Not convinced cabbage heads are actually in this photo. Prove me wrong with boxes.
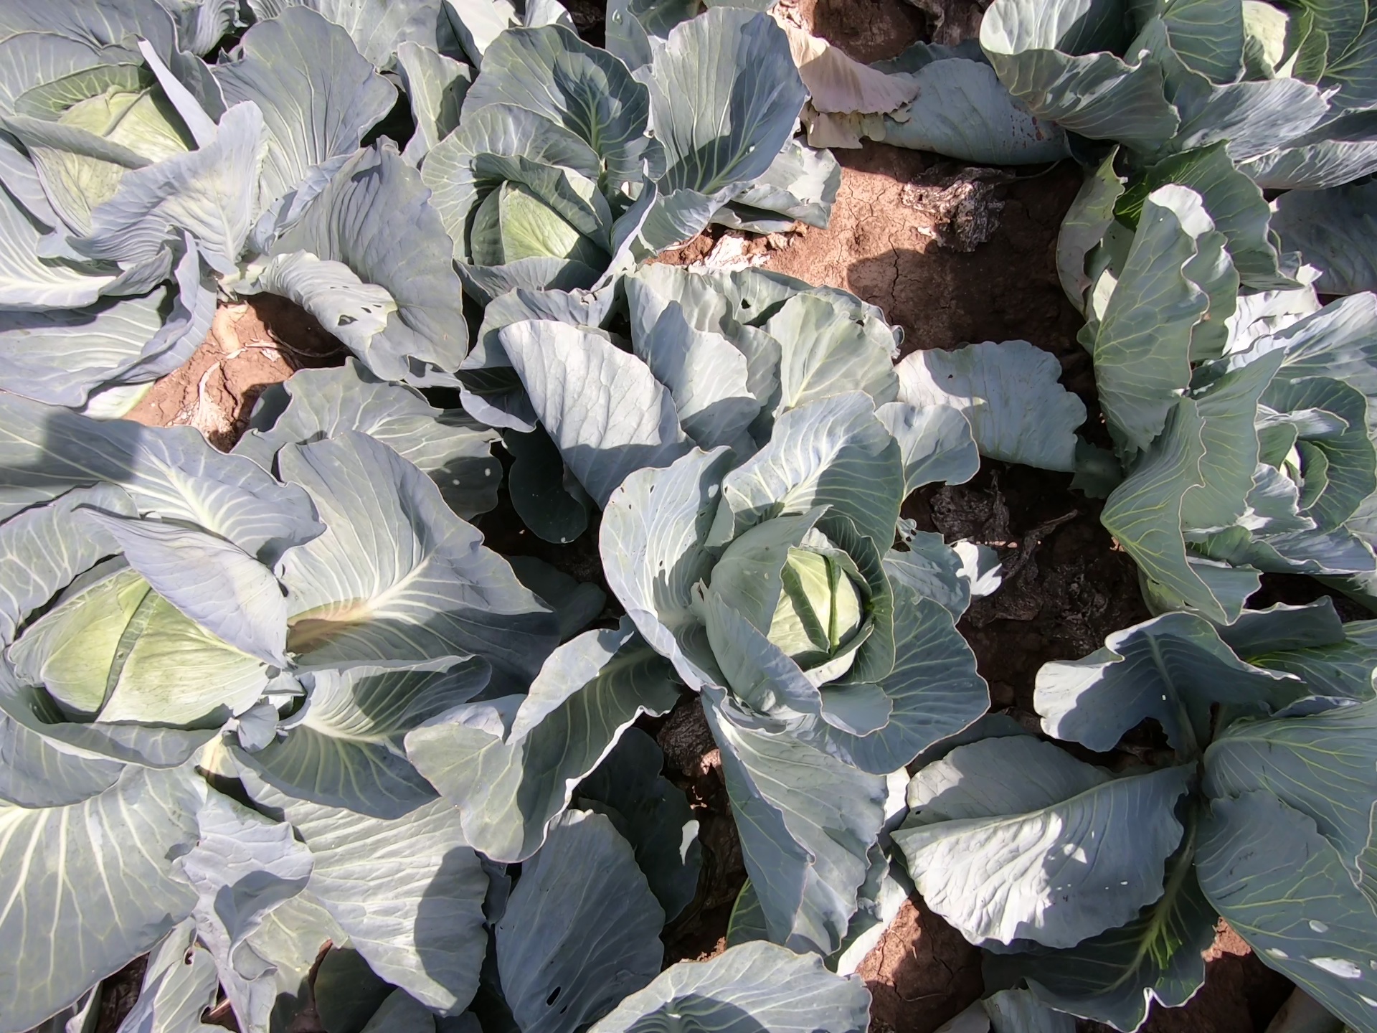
[33,537,290,739]
[1181,403,1305,524]
[711,519,865,691]
[34,82,231,250]
[1160,2,1317,115]
[473,165,616,306]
